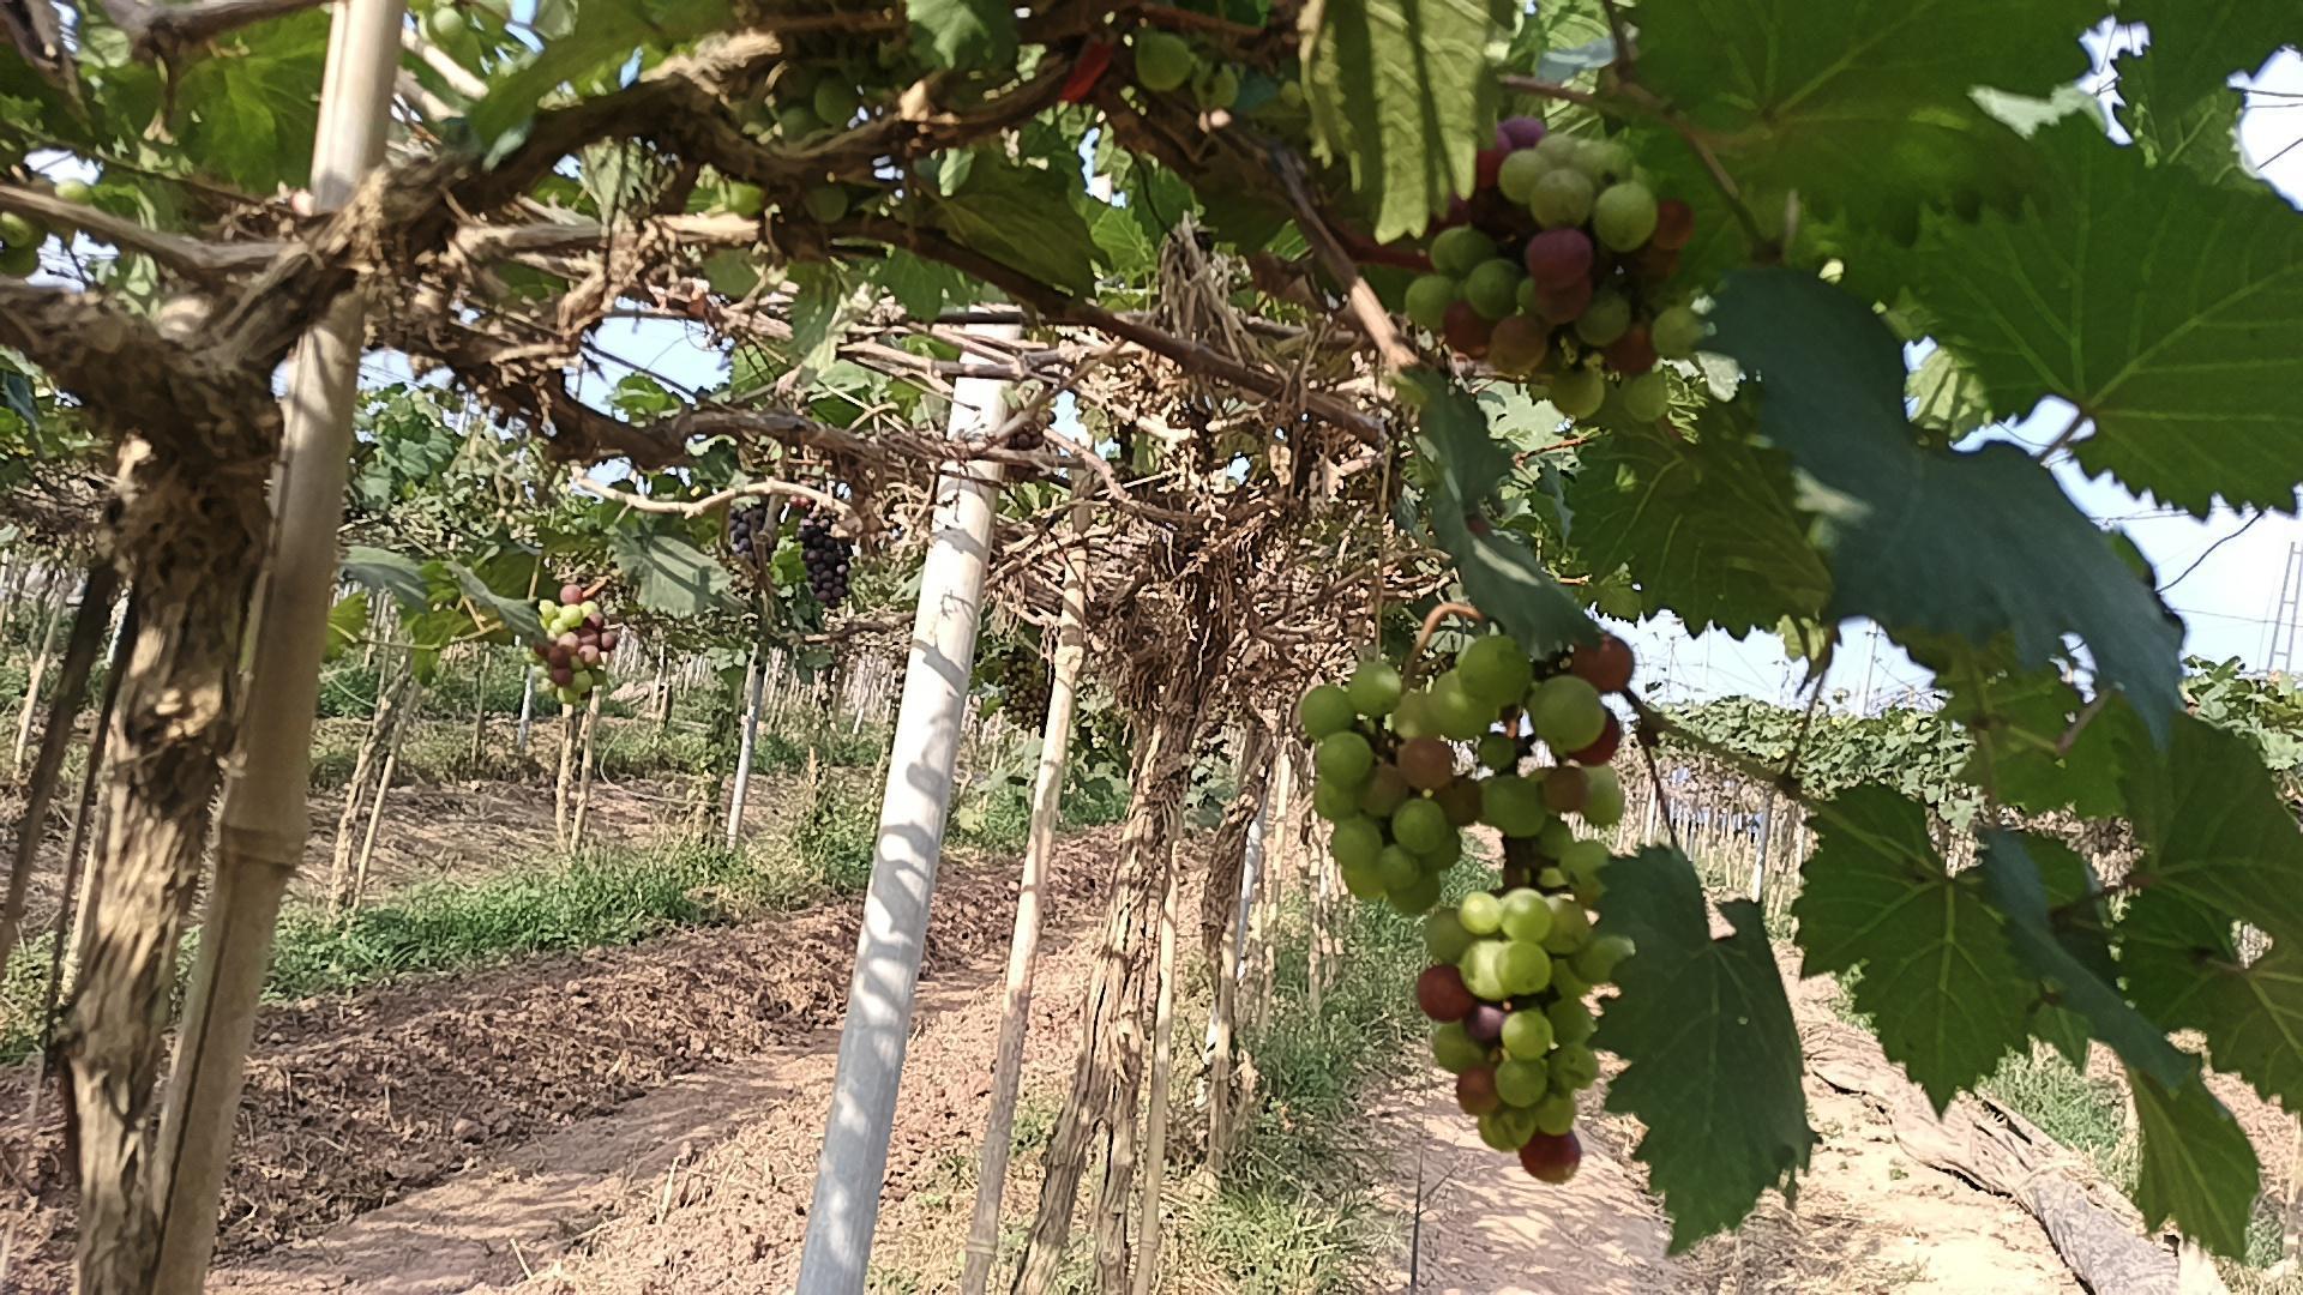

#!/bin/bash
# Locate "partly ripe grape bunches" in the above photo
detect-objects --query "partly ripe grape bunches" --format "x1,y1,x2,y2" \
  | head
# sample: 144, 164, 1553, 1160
527, 585, 621, 705
1405, 118, 1700, 416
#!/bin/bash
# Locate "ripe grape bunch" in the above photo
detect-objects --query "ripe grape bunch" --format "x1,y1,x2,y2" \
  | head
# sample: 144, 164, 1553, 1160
794, 510, 854, 608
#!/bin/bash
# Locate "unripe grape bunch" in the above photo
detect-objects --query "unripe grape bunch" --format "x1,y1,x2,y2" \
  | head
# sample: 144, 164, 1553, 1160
1301, 634, 1632, 1182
